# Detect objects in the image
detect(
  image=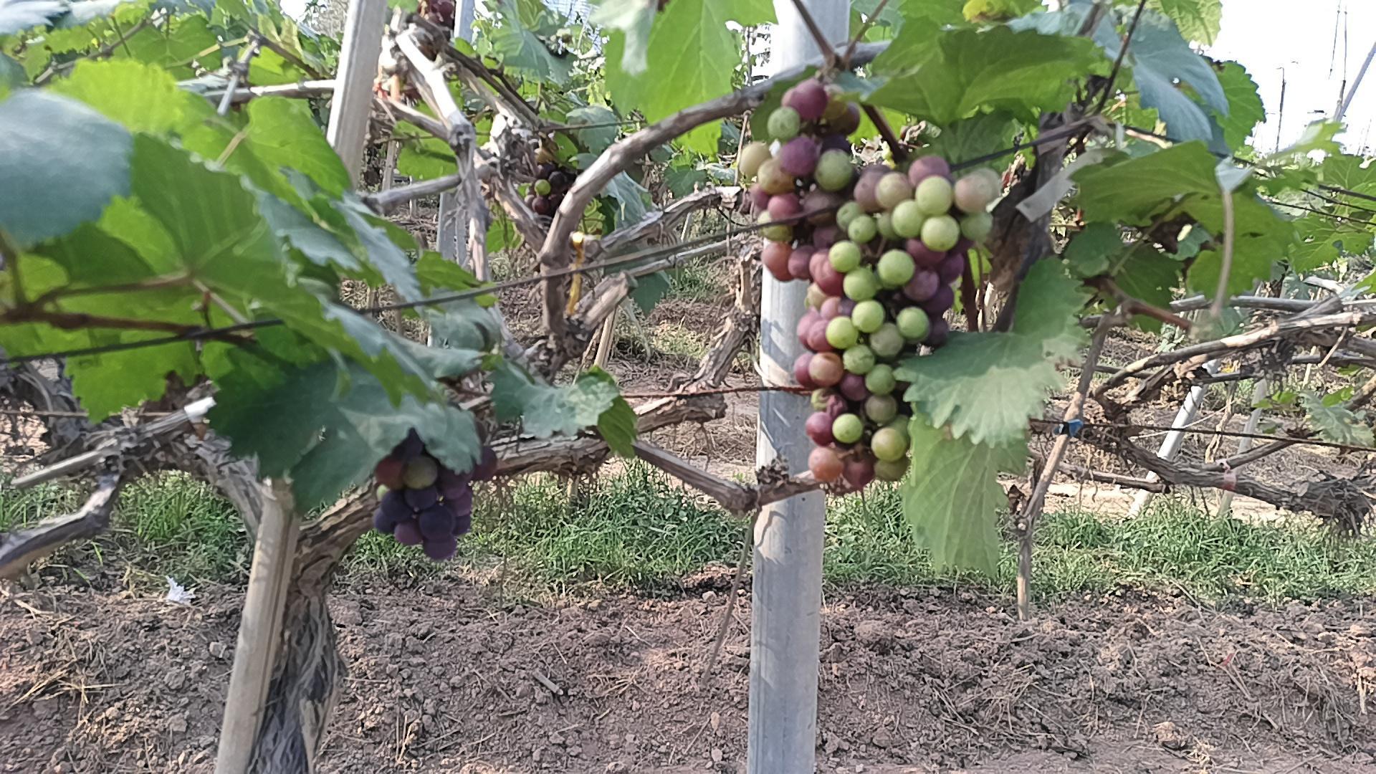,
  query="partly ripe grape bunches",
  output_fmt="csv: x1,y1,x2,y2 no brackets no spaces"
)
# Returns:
738,77,1002,492
373,420,497,560
525,143,578,217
